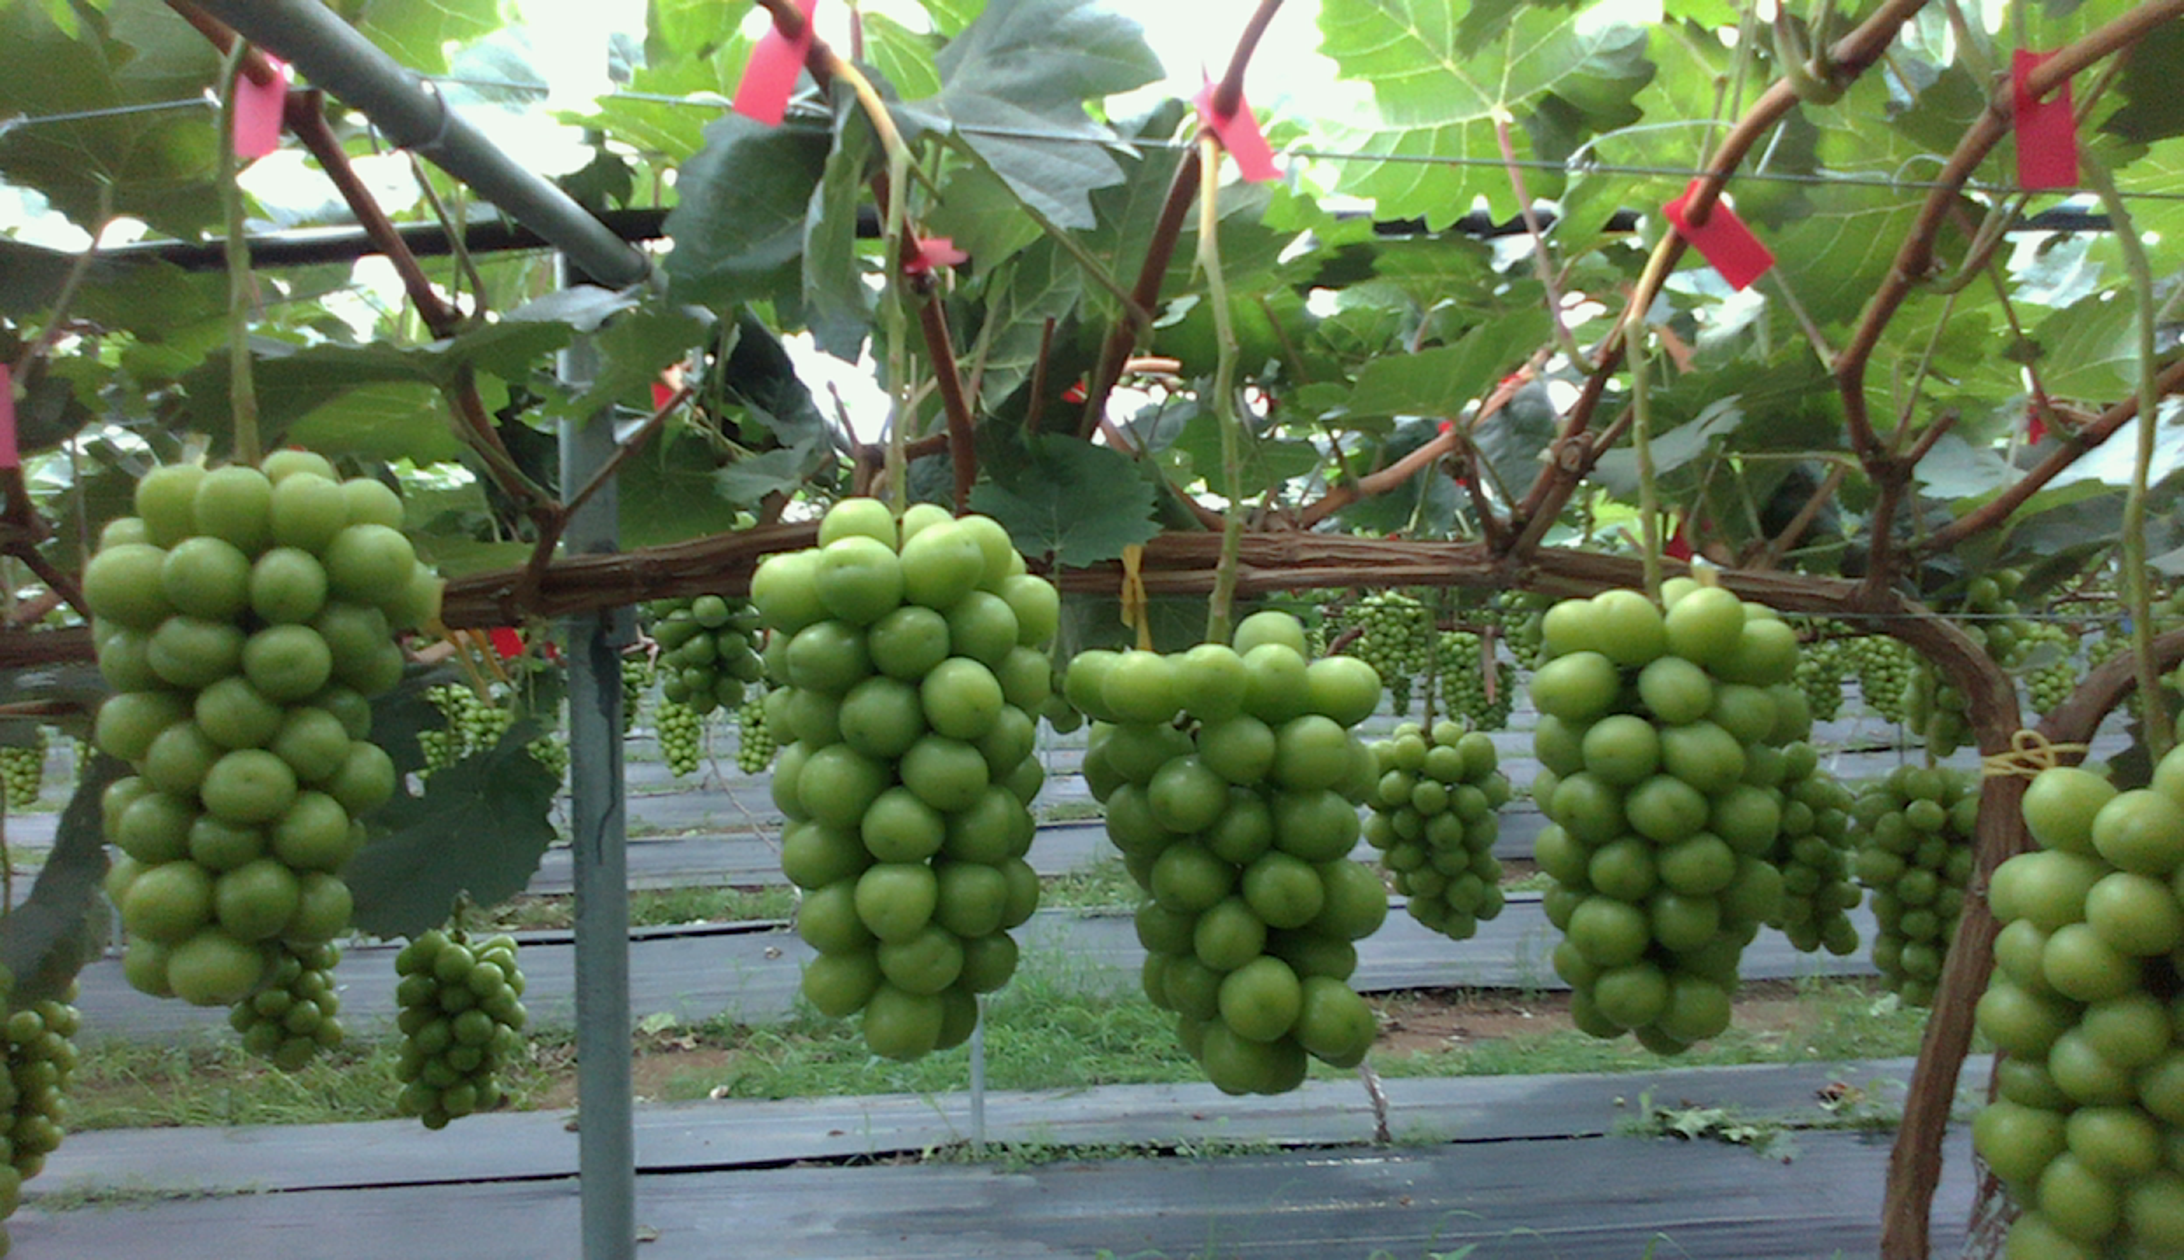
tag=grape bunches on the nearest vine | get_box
[1529,577,1806,1057]
[1062,611,1389,1097]
[1969,747,2182,1258]
[752,493,1060,1060]
[82,451,443,1011]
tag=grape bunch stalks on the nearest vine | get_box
[1608,233,1669,614]
[842,72,943,549]
[2082,147,2173,752]
[1190,149,1244,647]
[212,38,259,465]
